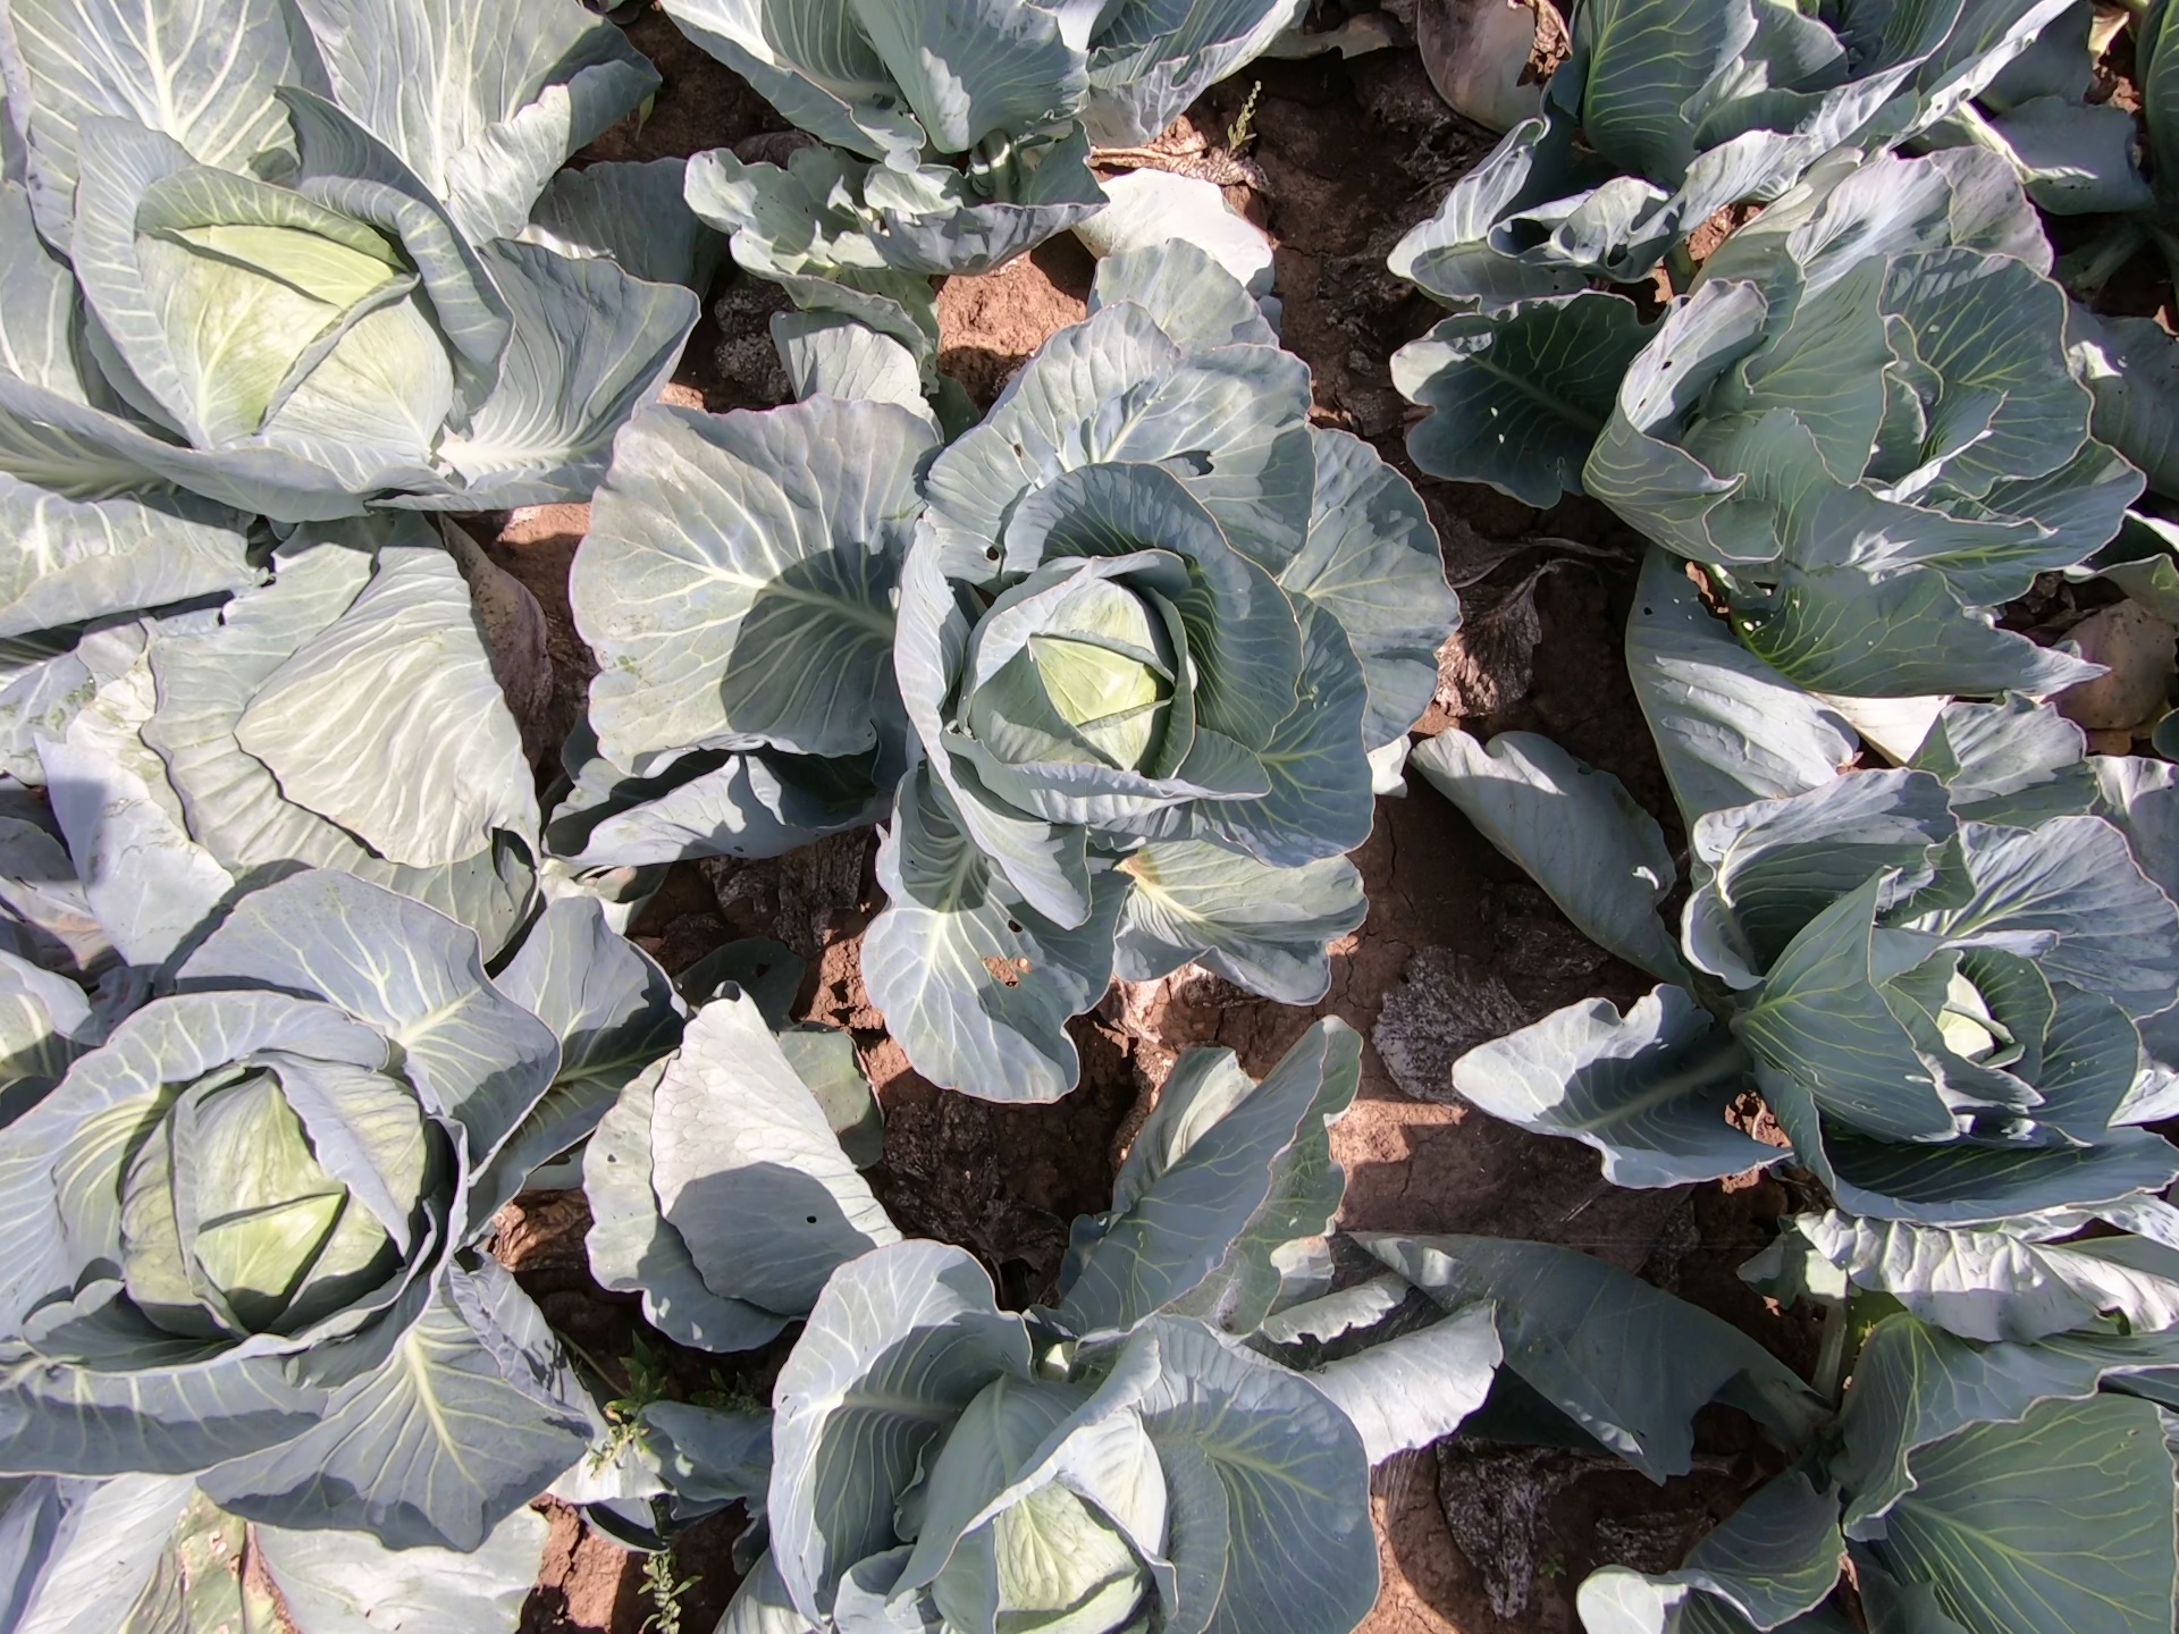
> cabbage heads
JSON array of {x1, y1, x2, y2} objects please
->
[
  {"x1": 1601, "y1": 0, "x2": 1814, "y2": 150},
  {"x1": 928, "y1": 1397, "x2": 1162, "y2": 1633},
  {"x1": 965, "y1": 571, "x2": 1185, "y2": 820},
  {"x1": 1827, "y1": 960, "x2": 1995, "y2": 1129},
  {"x1": 120, "y1": 1060, "x2": 444, "y2": 1337},
  {"x1": 83, "y1": 195, "x2": 458, "y2": 482}
]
